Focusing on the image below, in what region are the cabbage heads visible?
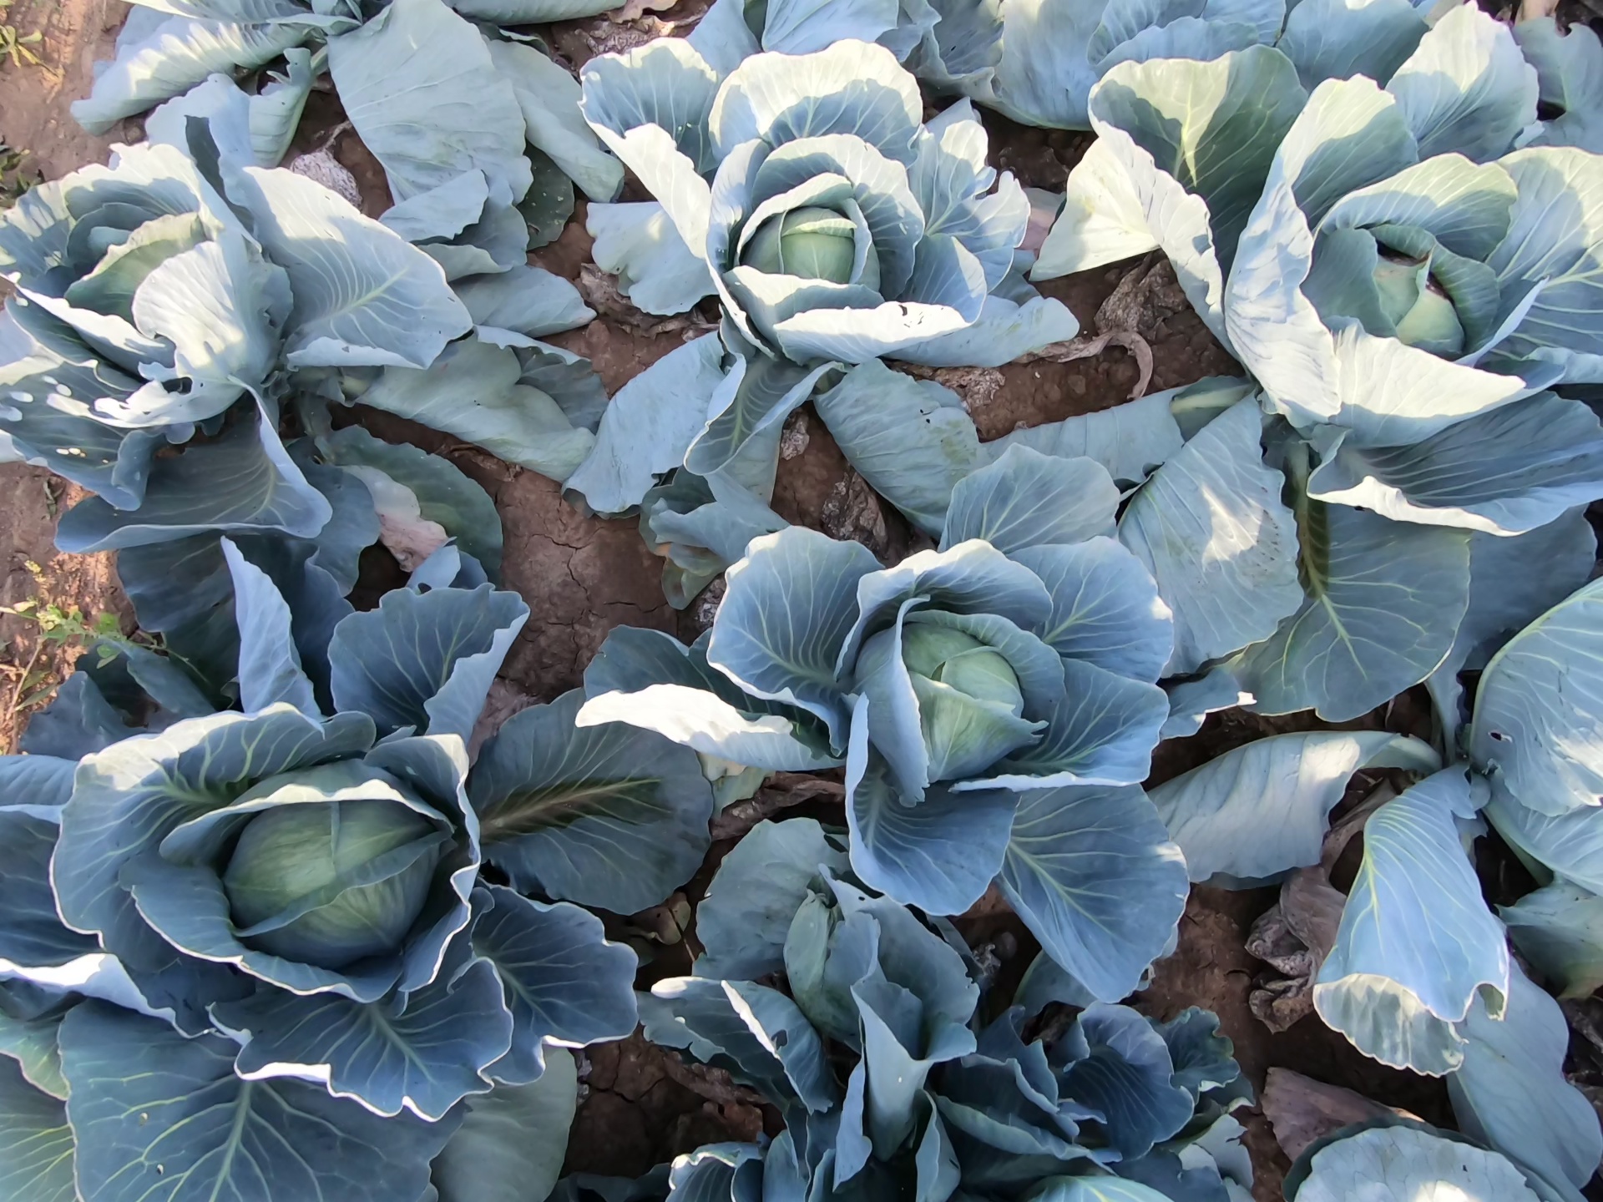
[1294,245,1465,405]
[228,777,440,968]
[88,234,236,363]
[873,624,1024,762]
[742,210,870,324]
